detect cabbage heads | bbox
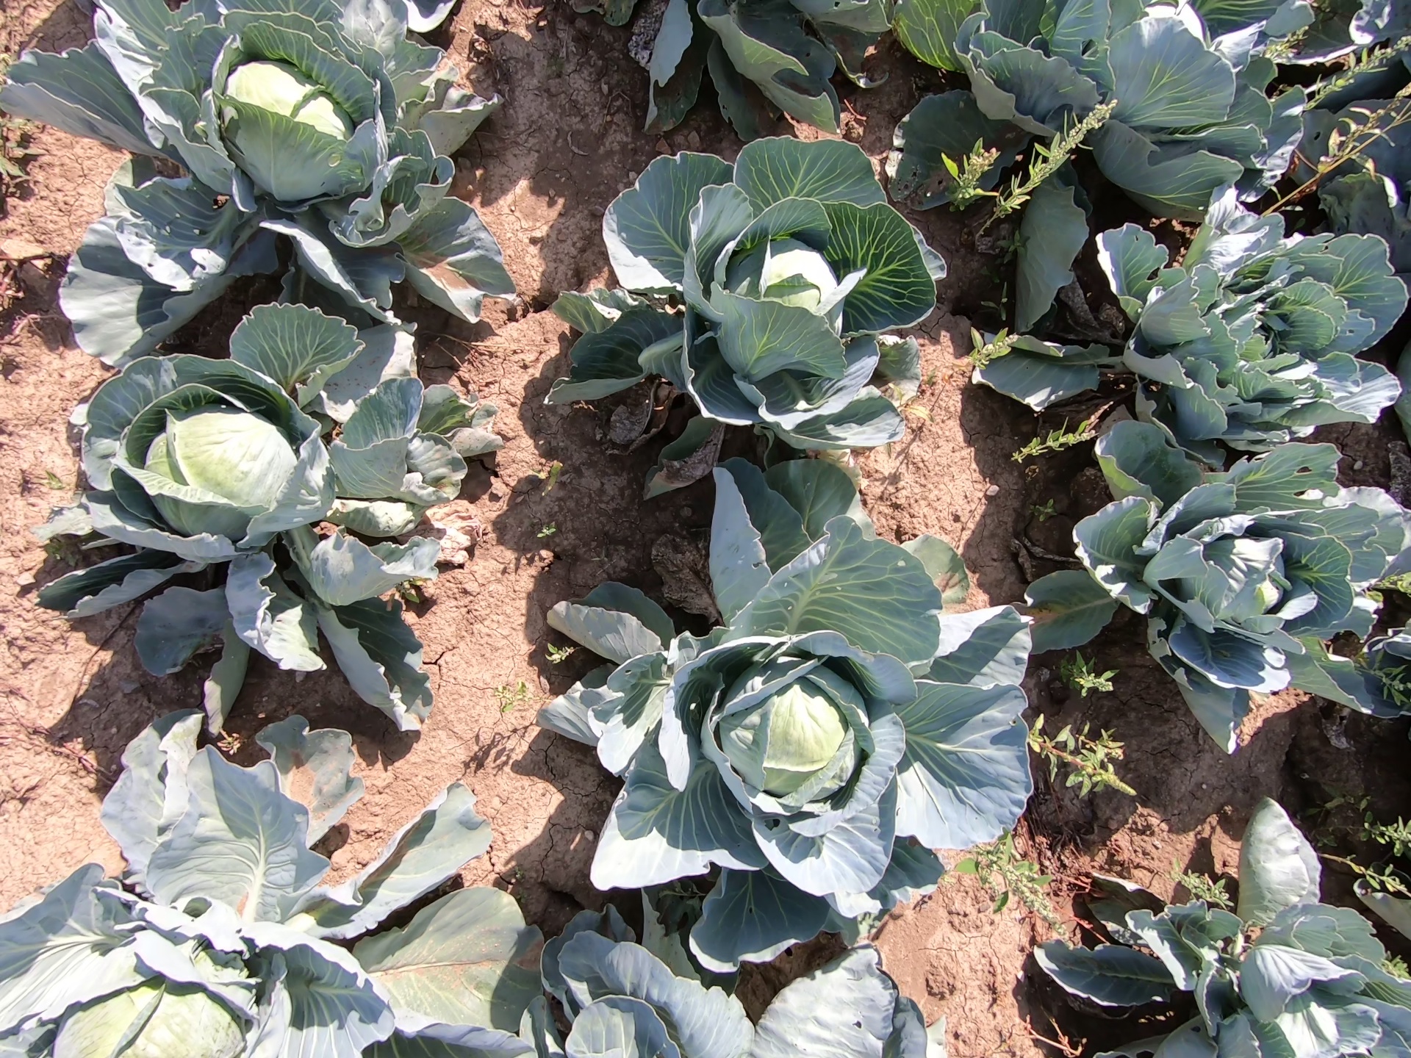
[723,237,844,373]
[1126,2,1210,89]
[1204,539,1288,619]
[215,54,362,195]
[141,403,306,541]
[50,963,243,1057]
[717,658,869,805]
